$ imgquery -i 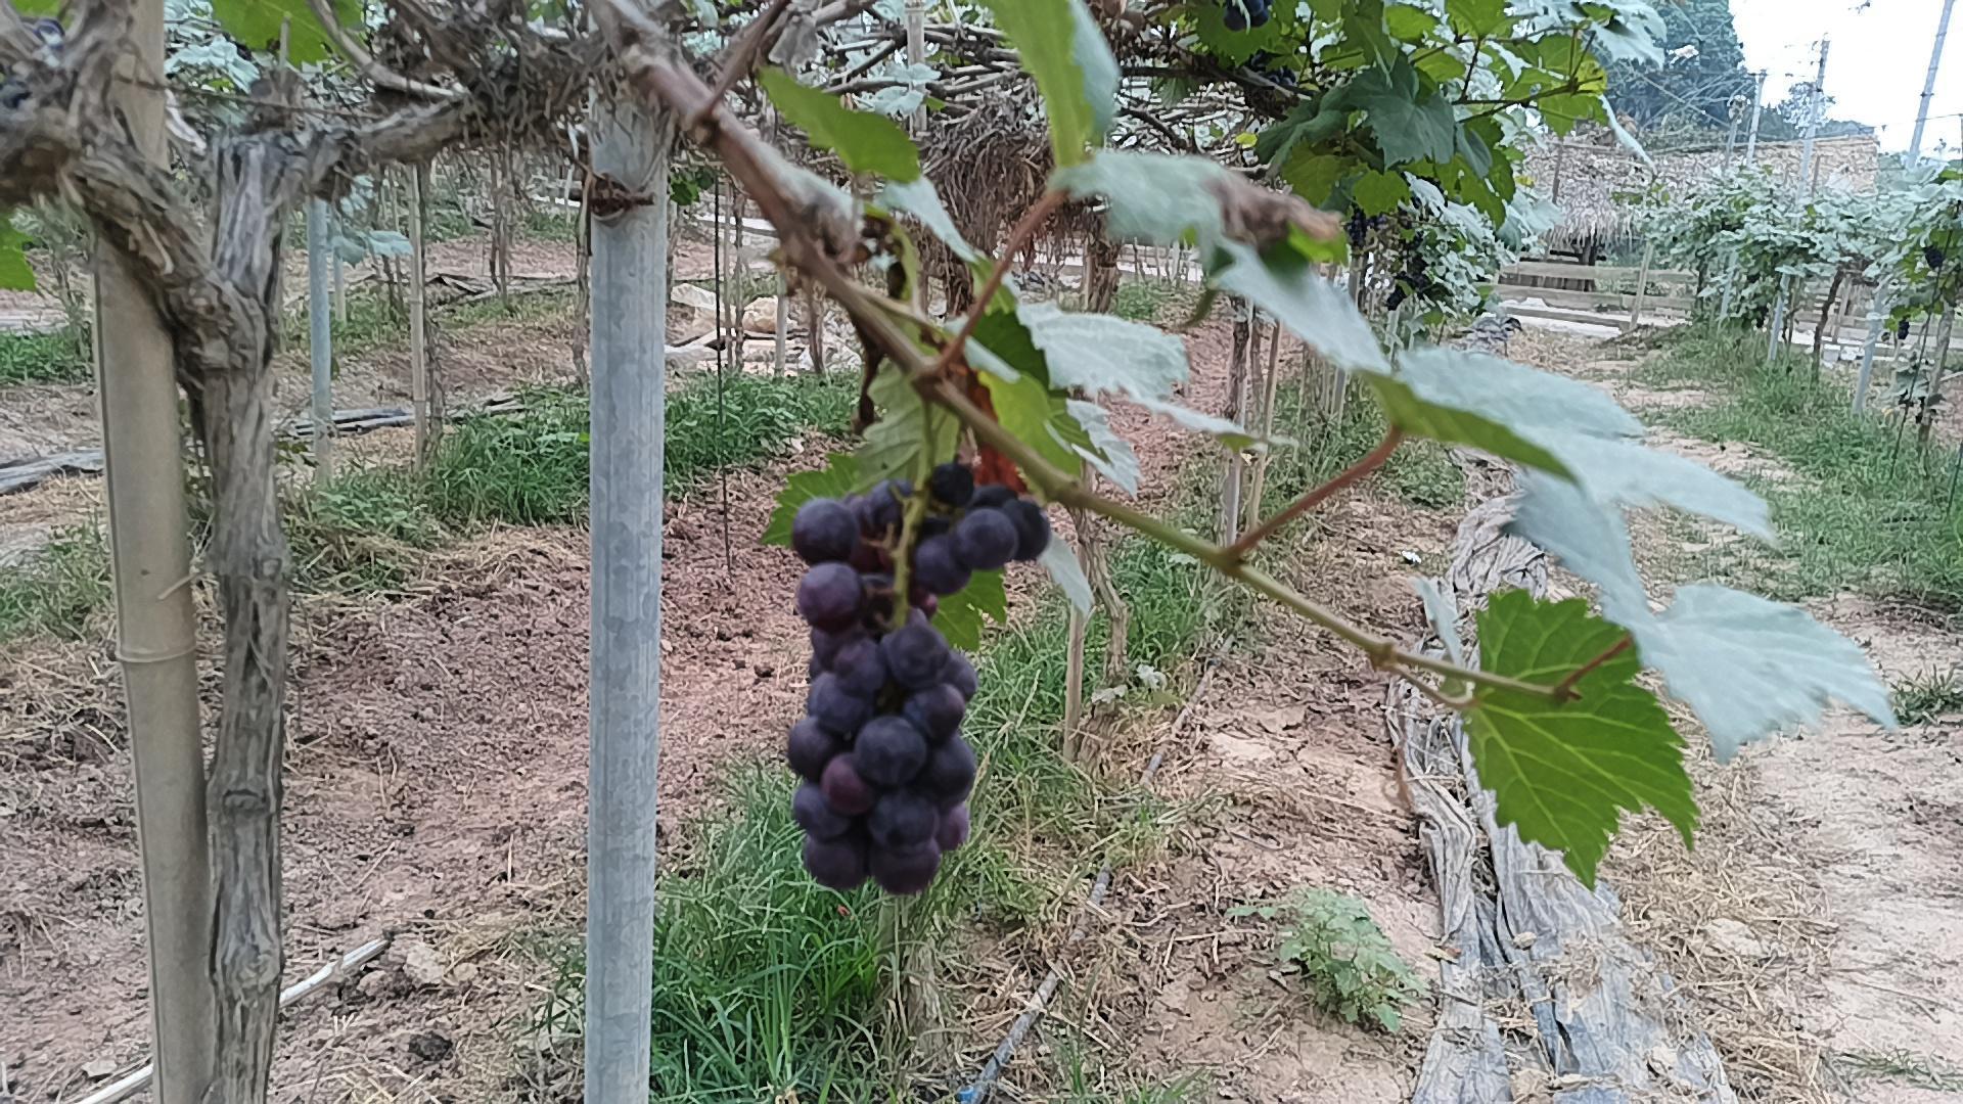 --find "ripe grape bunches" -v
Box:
[1223,0,1274,31]
[786,460,1050,893]
[1232,49,1314,119]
